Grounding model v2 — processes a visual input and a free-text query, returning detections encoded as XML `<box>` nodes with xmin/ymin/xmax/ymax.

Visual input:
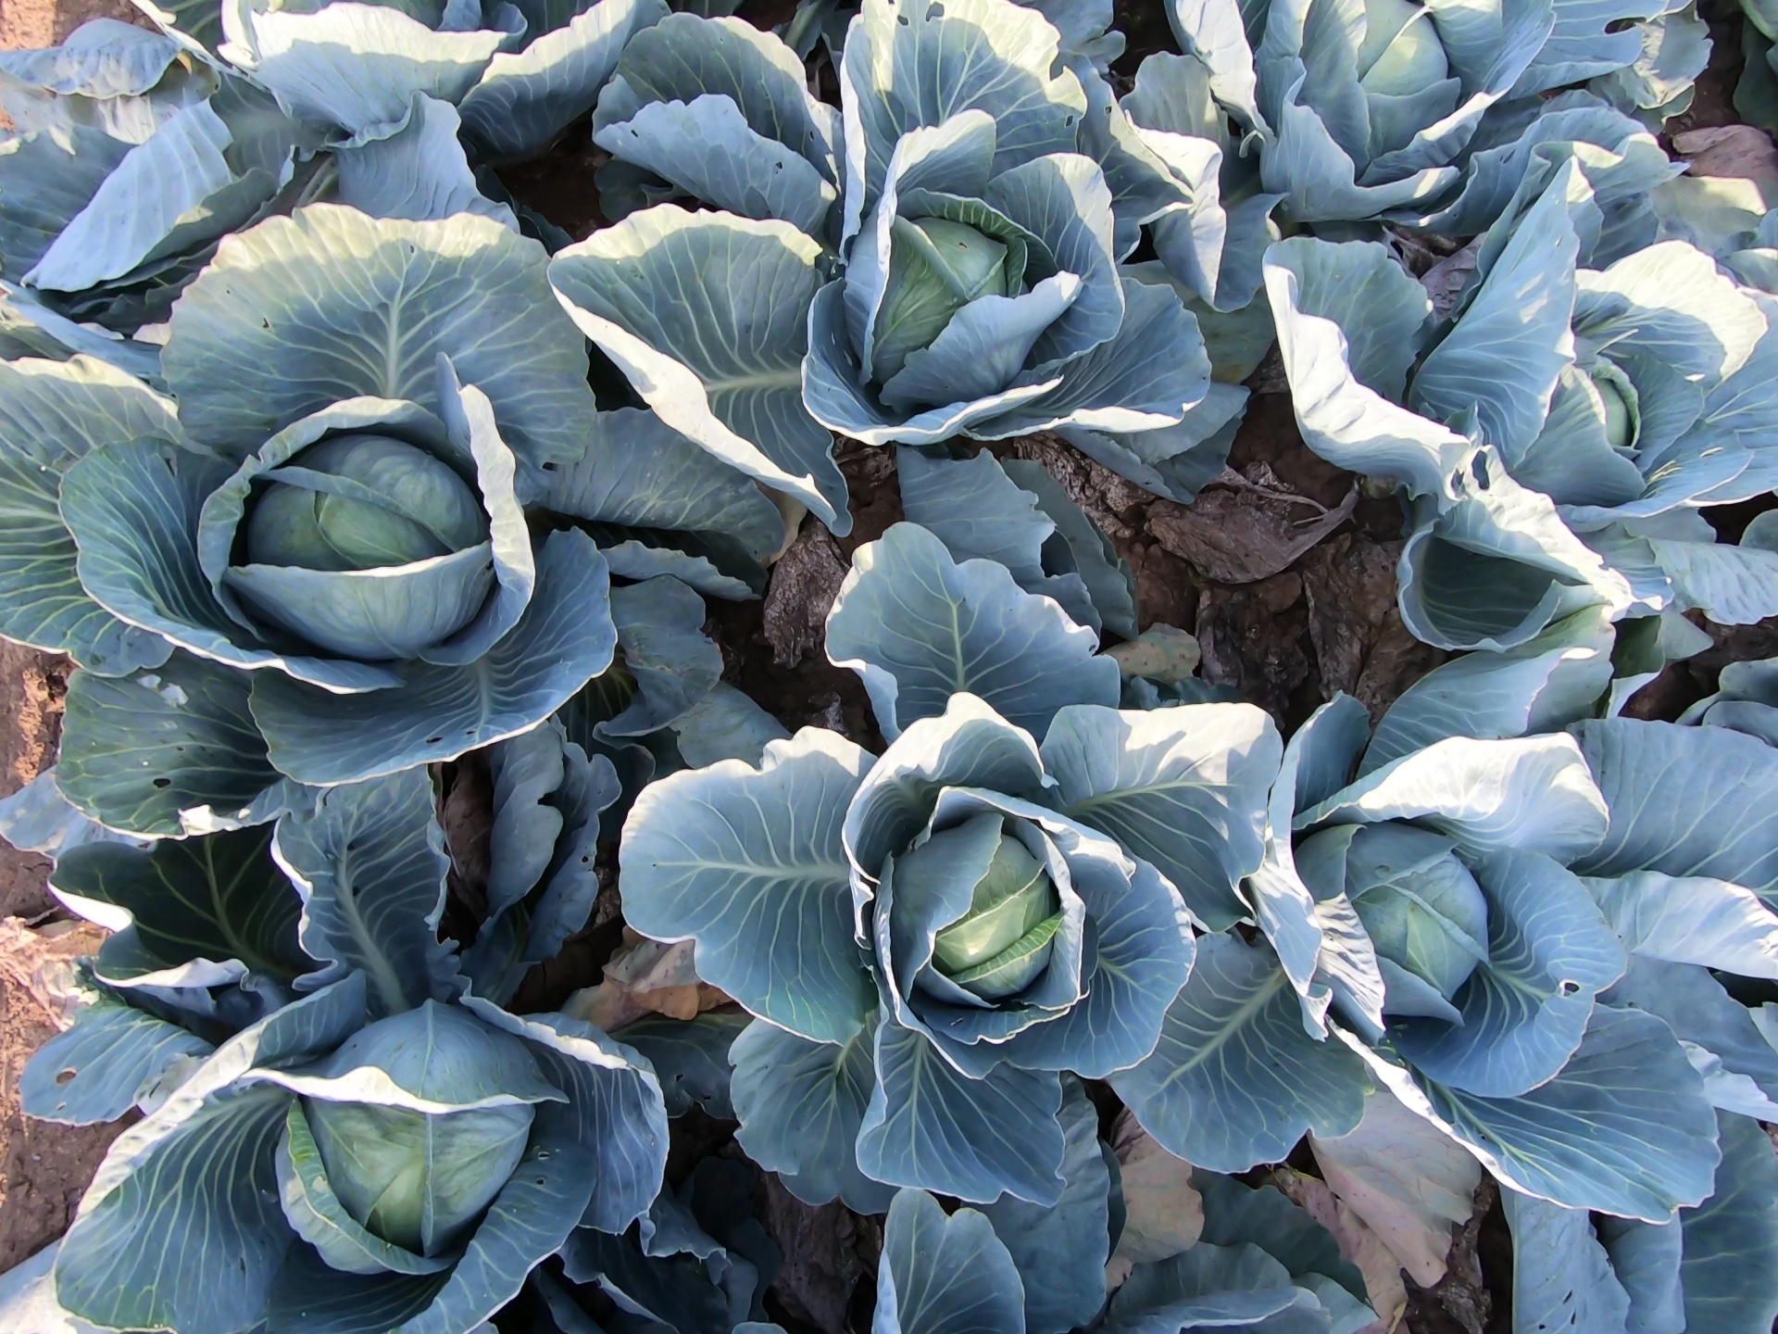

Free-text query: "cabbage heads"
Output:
<box><xmin>838</xmin><ymin>208</ymin><xmax>1030</xmax><ymax>389</ymax></box>
<box><xmin>243</xmin><ymin>437</ymin><xmax>493</xmax><ymax>637</ymax></box>
<box><xmin>1290</xmin><ymin>2</ymin><xmax>1445</xmax><ymax>153</ymax></box>
<box><xmin>271</xmin><ymin>2</ymin><xmax>450</xmax><ymax>95</ymax></box>
<box><xmin>1489</xmin><ymin>349</ymin><xmax>1628</xmax><ymax>491</ymax></box>
<box><xmin>891</xmin><ymin>831</ymin><xmax>1067</xmax><ymax>1001</ymax></box>
<box><xmin>1307</xmin><ymin>826</ymin><xmax>1491</xmax><ymax>1018</ymax></box>
<box><xmin>308</xmin><ymin>1015</ymin><xmax>530</xmax><ymax>1249</ymax></box>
